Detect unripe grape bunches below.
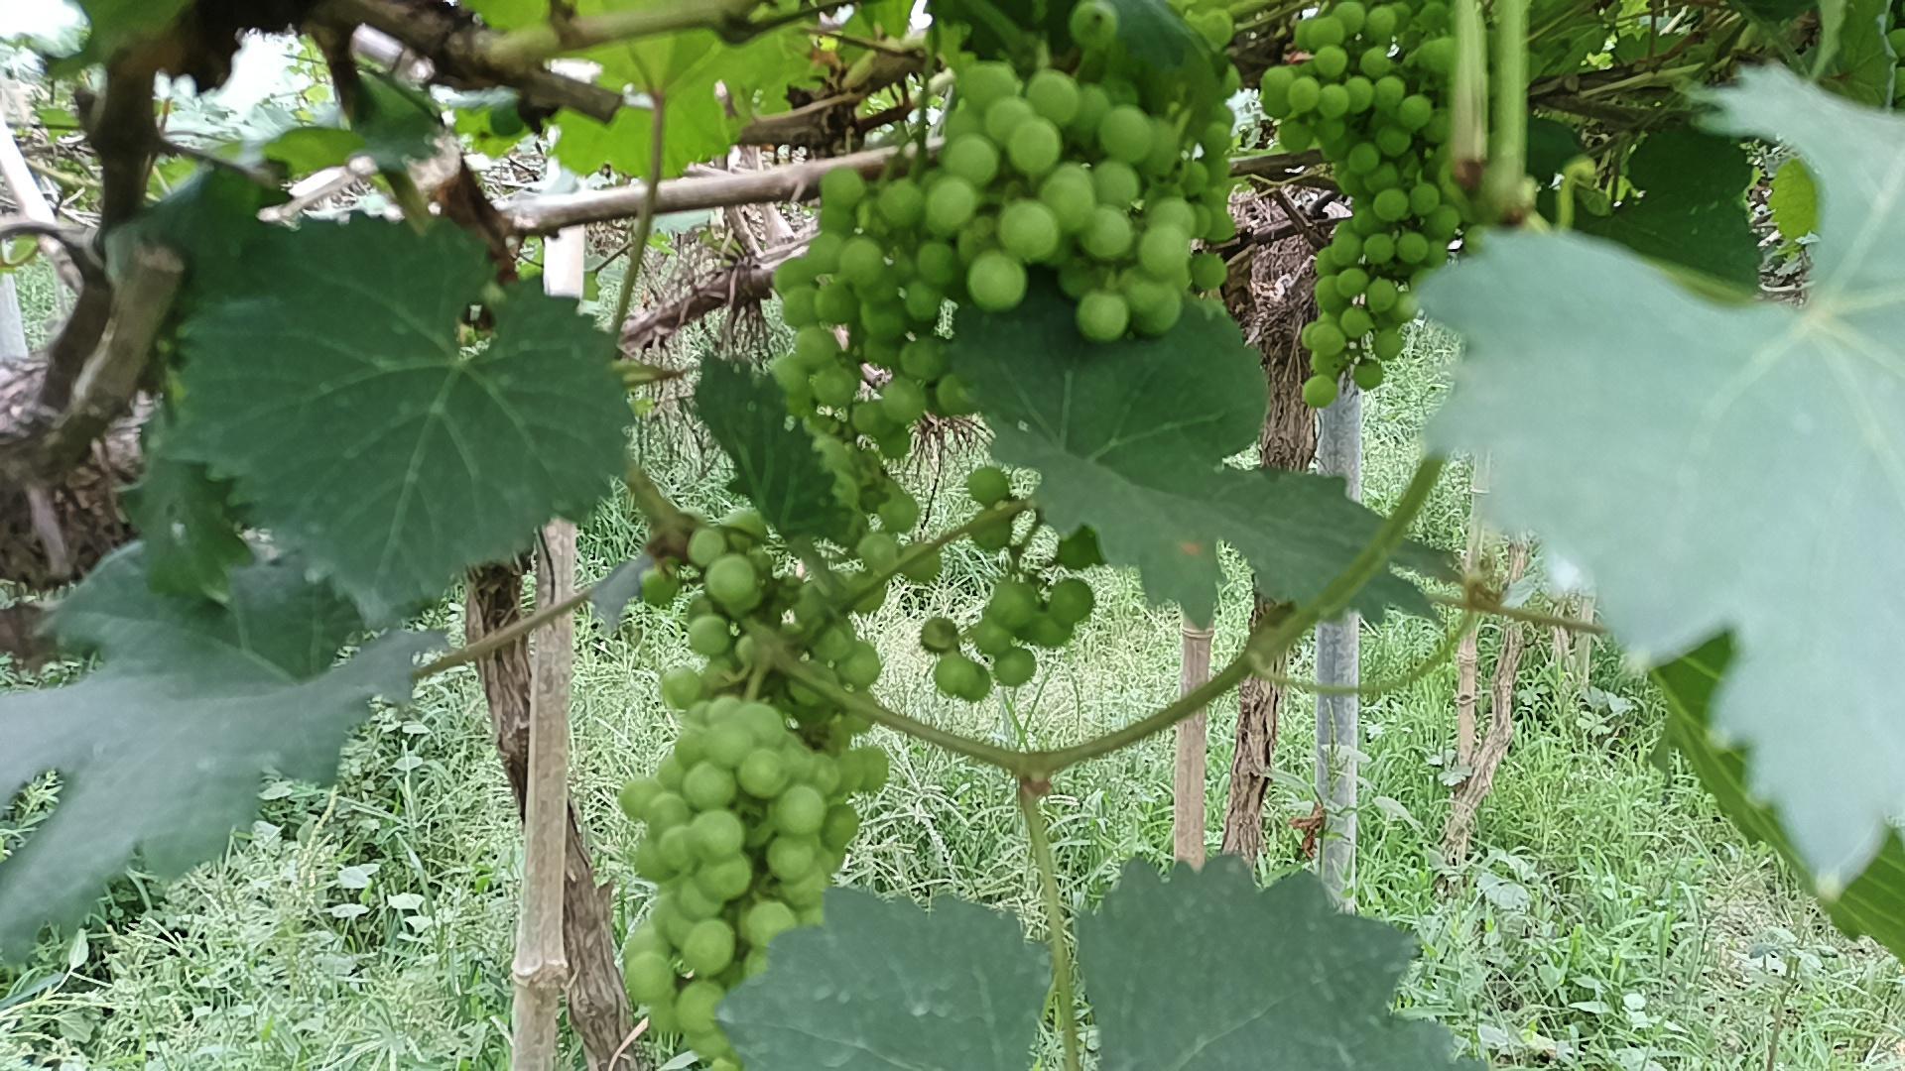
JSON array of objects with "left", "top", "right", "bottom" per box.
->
[
  {"left": 1260, "top": 0, "right": 1481, "bottom": 408},
  {"left": 773, "top": 0, "right": 1239, "bottom": 457},
  {"left": 620, "top": 451, "right": 1093, "bottom": 1070}
]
